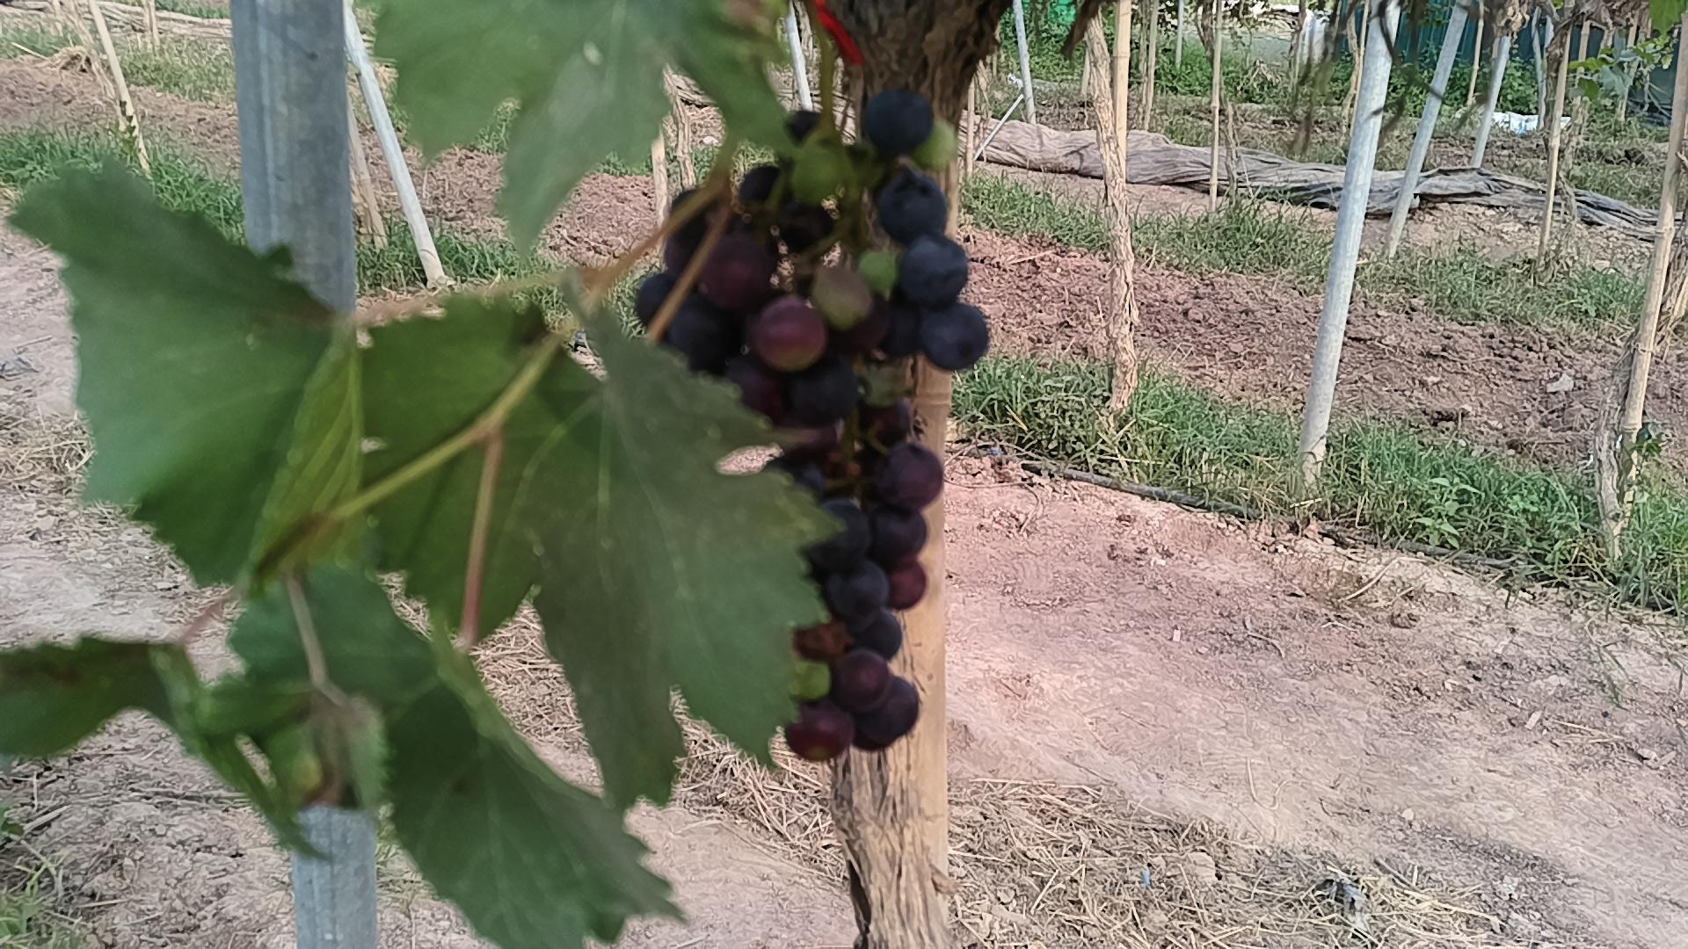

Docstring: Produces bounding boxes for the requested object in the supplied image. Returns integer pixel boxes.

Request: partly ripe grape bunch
[636,90,988,761]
